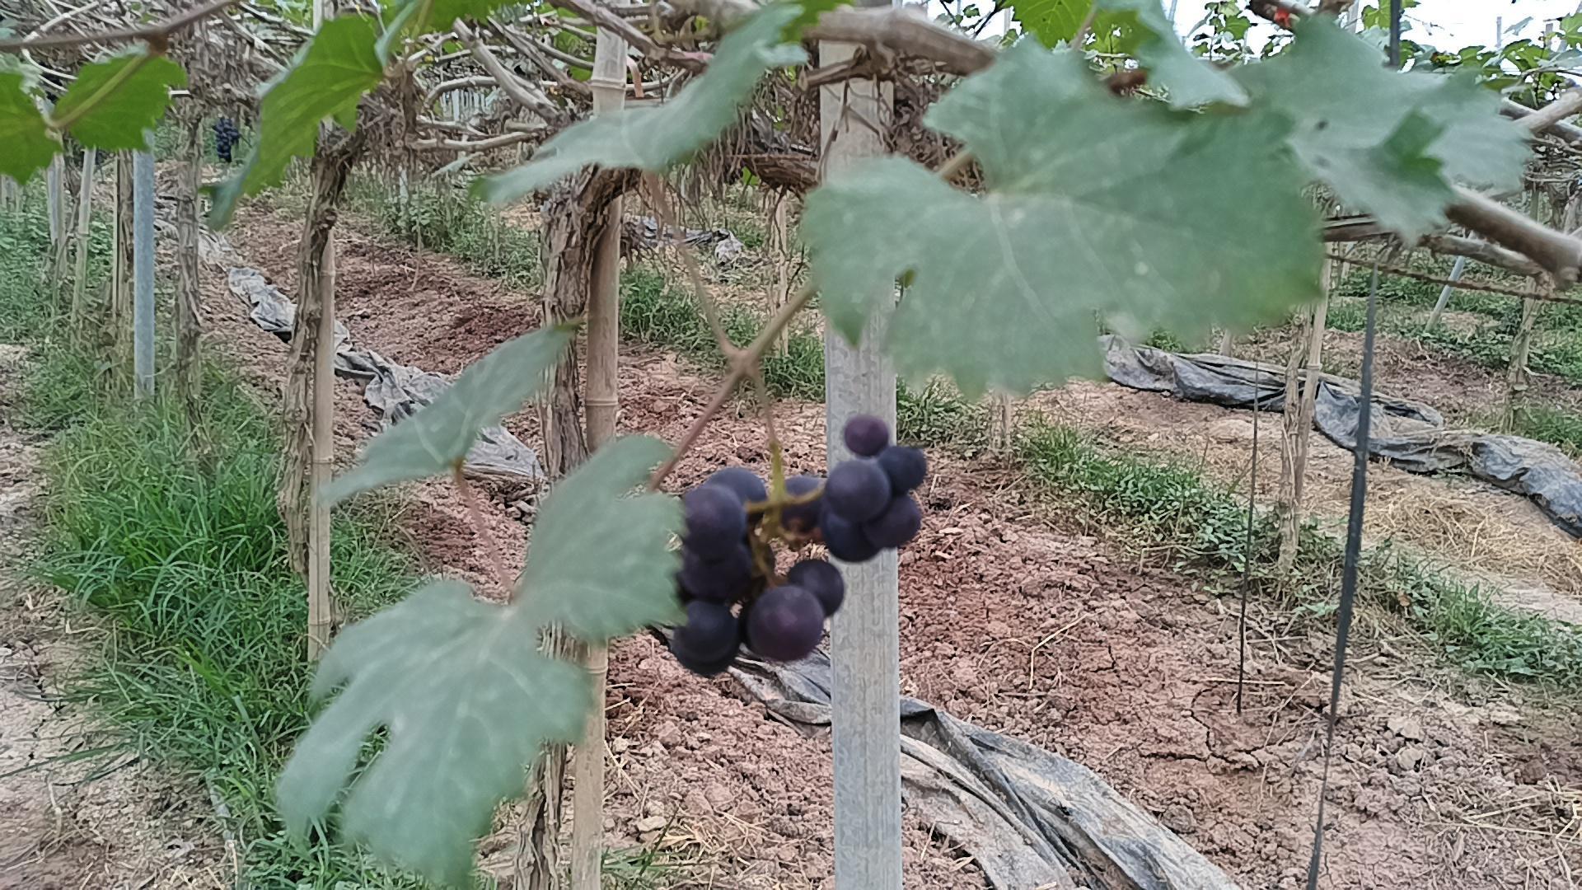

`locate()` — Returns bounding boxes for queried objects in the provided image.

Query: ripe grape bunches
[648,415,926,677]
[208,110,250,167]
